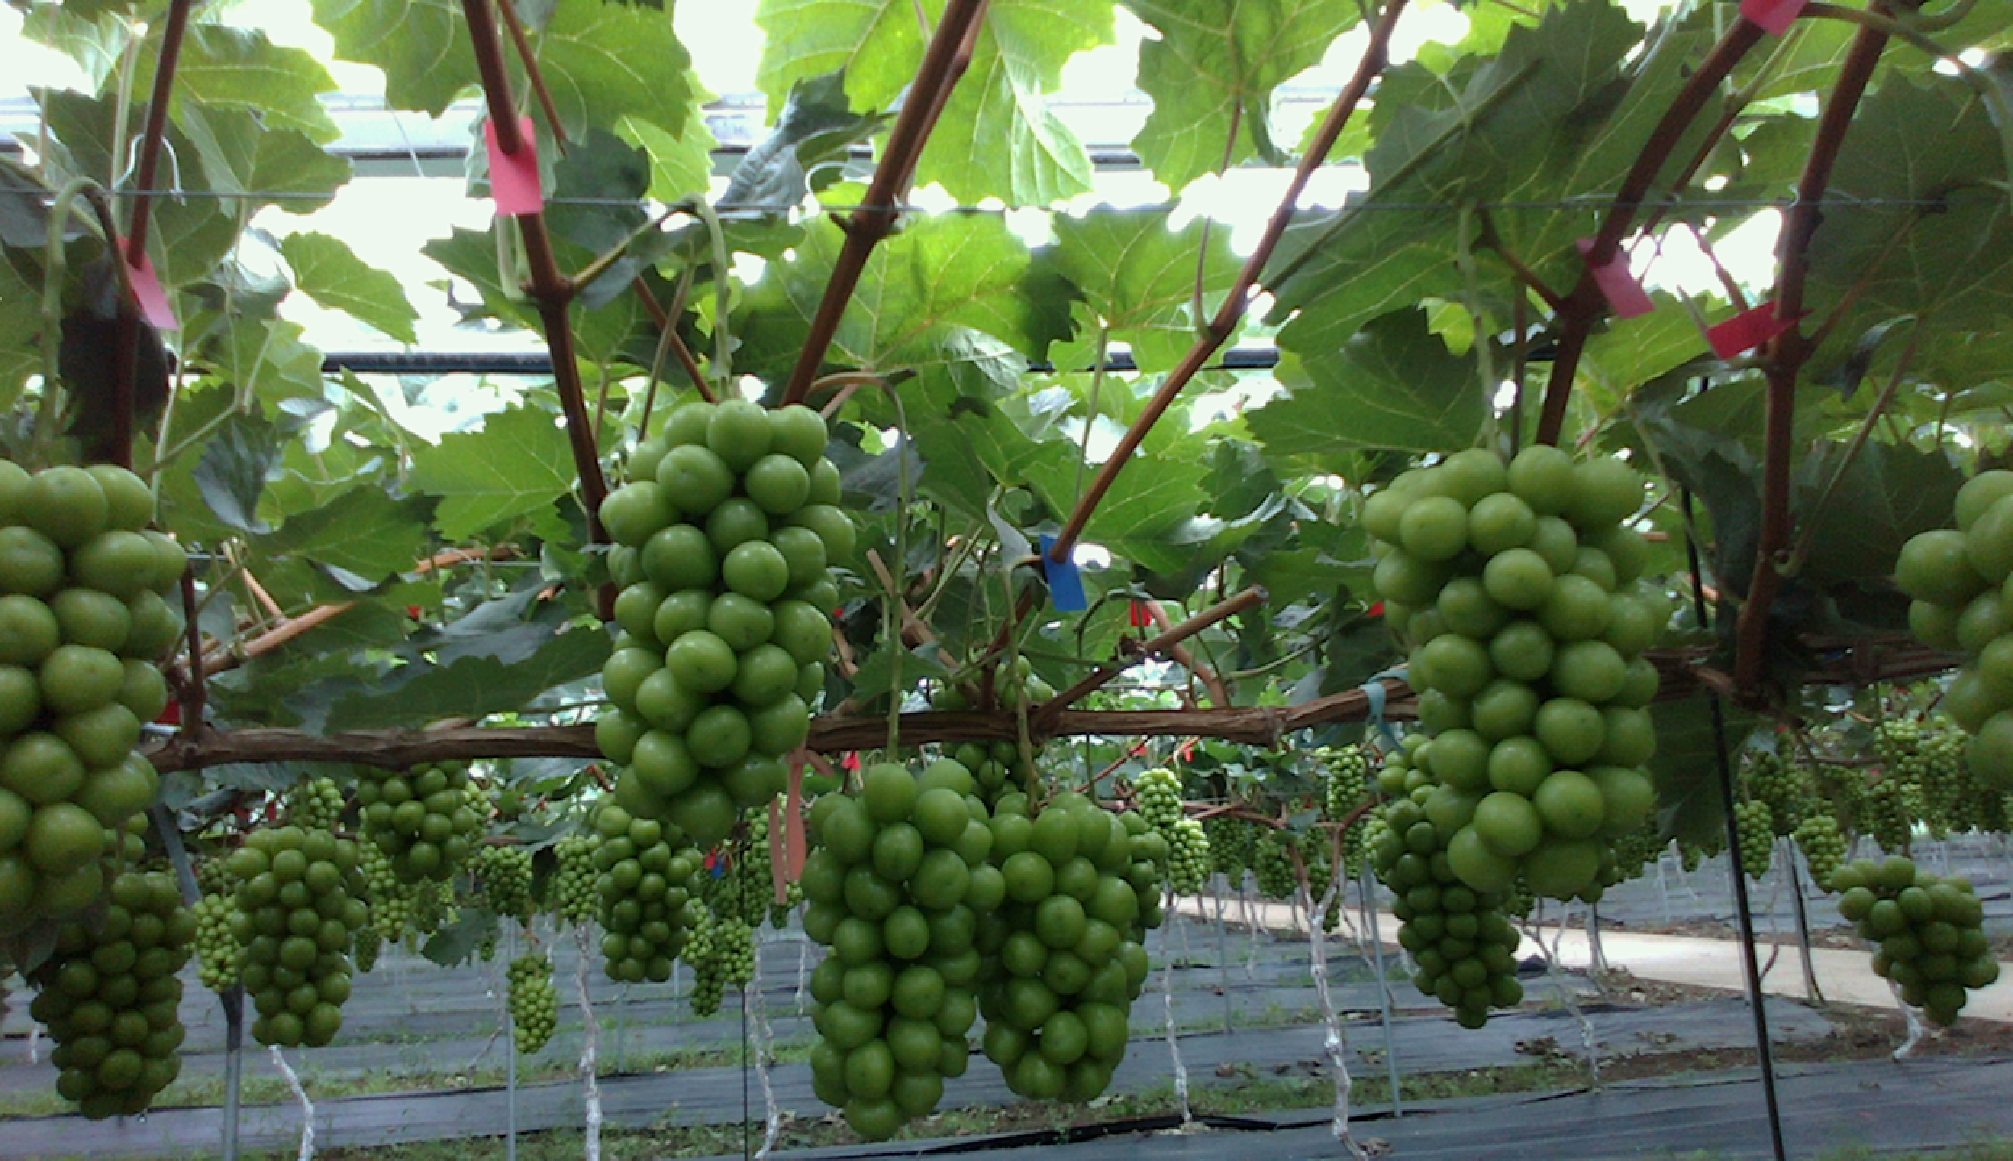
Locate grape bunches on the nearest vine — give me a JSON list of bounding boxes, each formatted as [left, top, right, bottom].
[[597, 398, 855, 838], [2, 458, 184, 937], [1898, 468, 2011, 792], [1358, 443, 1674, 892], [976, 793, 1148, 1106], [797, 759, 1002, 1140]]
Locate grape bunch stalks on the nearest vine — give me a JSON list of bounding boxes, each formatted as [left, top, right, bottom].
[[574, 192, 734, 406], [1002, 551, 1039, 816], [808, 374, 908, 764], [1457, 195, 1510, 463], [21, 174, 144, 474]]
